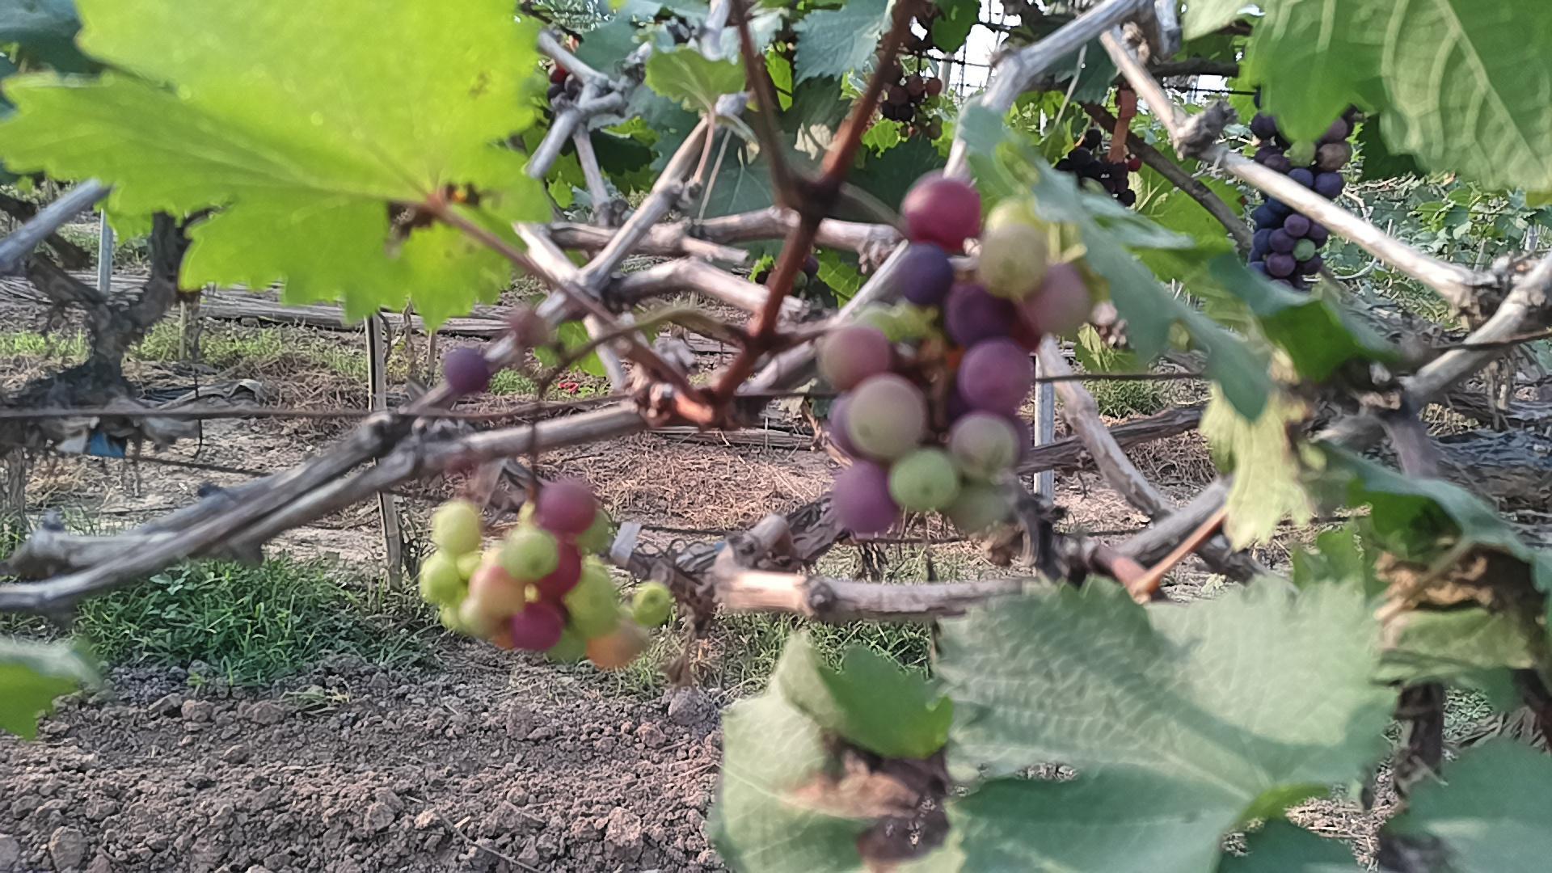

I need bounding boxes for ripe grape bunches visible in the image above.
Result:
[1056,128,1140,205]
[444,348,497,396]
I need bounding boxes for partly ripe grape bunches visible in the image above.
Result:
[419,480,672,669]
[879,73,943,140]
[1245,108,1357,287]
[818,178,1090,537]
